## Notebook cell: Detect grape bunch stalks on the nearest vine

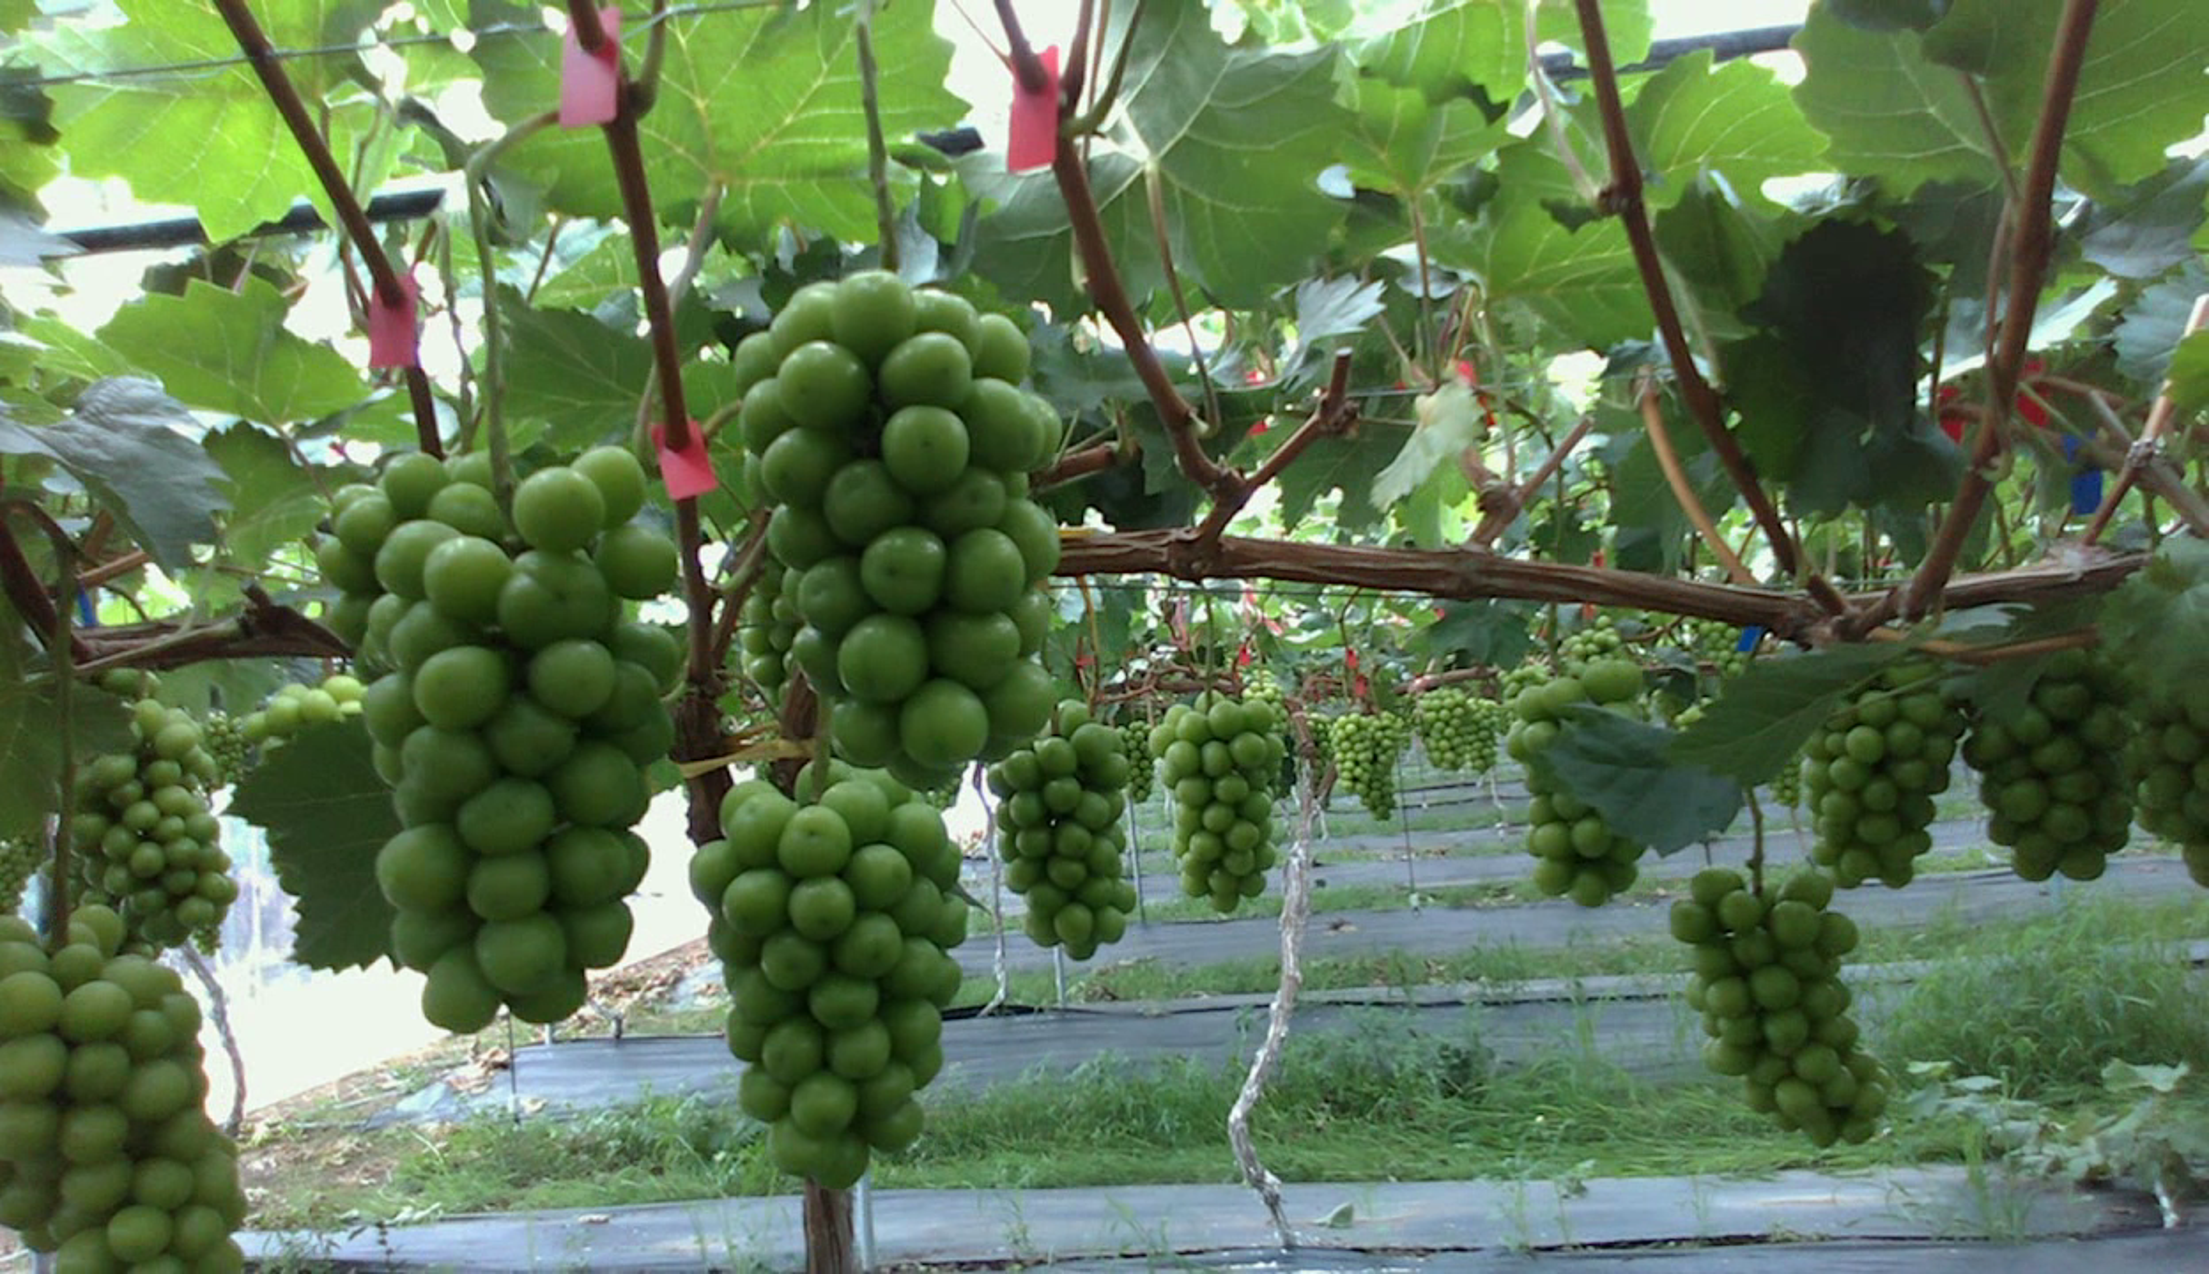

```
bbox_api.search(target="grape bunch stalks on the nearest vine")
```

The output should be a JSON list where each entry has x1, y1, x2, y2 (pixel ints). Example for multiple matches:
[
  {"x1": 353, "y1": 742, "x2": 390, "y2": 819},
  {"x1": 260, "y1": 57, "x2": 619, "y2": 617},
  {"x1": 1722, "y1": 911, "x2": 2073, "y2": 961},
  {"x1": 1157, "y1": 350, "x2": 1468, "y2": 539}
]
[
  {"x1": 855, "y1": 2, "x2": 897, "y2": 269},
  {"x1": 812, "y1": 702, "x2": 828, "y2": 798},
  {"x1": 5, "y1": 503, "x2": 90, "y2": 954},
  {"x1": 462, "y1": 110, "x2": 552, "y2": 554}
]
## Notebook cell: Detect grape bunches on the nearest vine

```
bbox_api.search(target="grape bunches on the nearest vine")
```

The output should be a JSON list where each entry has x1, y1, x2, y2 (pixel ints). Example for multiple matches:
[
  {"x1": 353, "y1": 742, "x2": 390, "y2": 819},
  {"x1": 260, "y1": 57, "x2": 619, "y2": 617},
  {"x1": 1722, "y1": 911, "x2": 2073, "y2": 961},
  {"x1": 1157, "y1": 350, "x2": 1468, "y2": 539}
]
[
  {"x1": 315, "y1": 448, "x2": 683, "y2": 1035},
  {"x1": 690, "y1": 761, "x2": 968, "y2": 1194},
  {"x1": 735, "y1": 269, "x2": 1062, "y2": 791},
  {"x1": 0, "y1": 902, "x2": 246, "y2": 1272}
]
